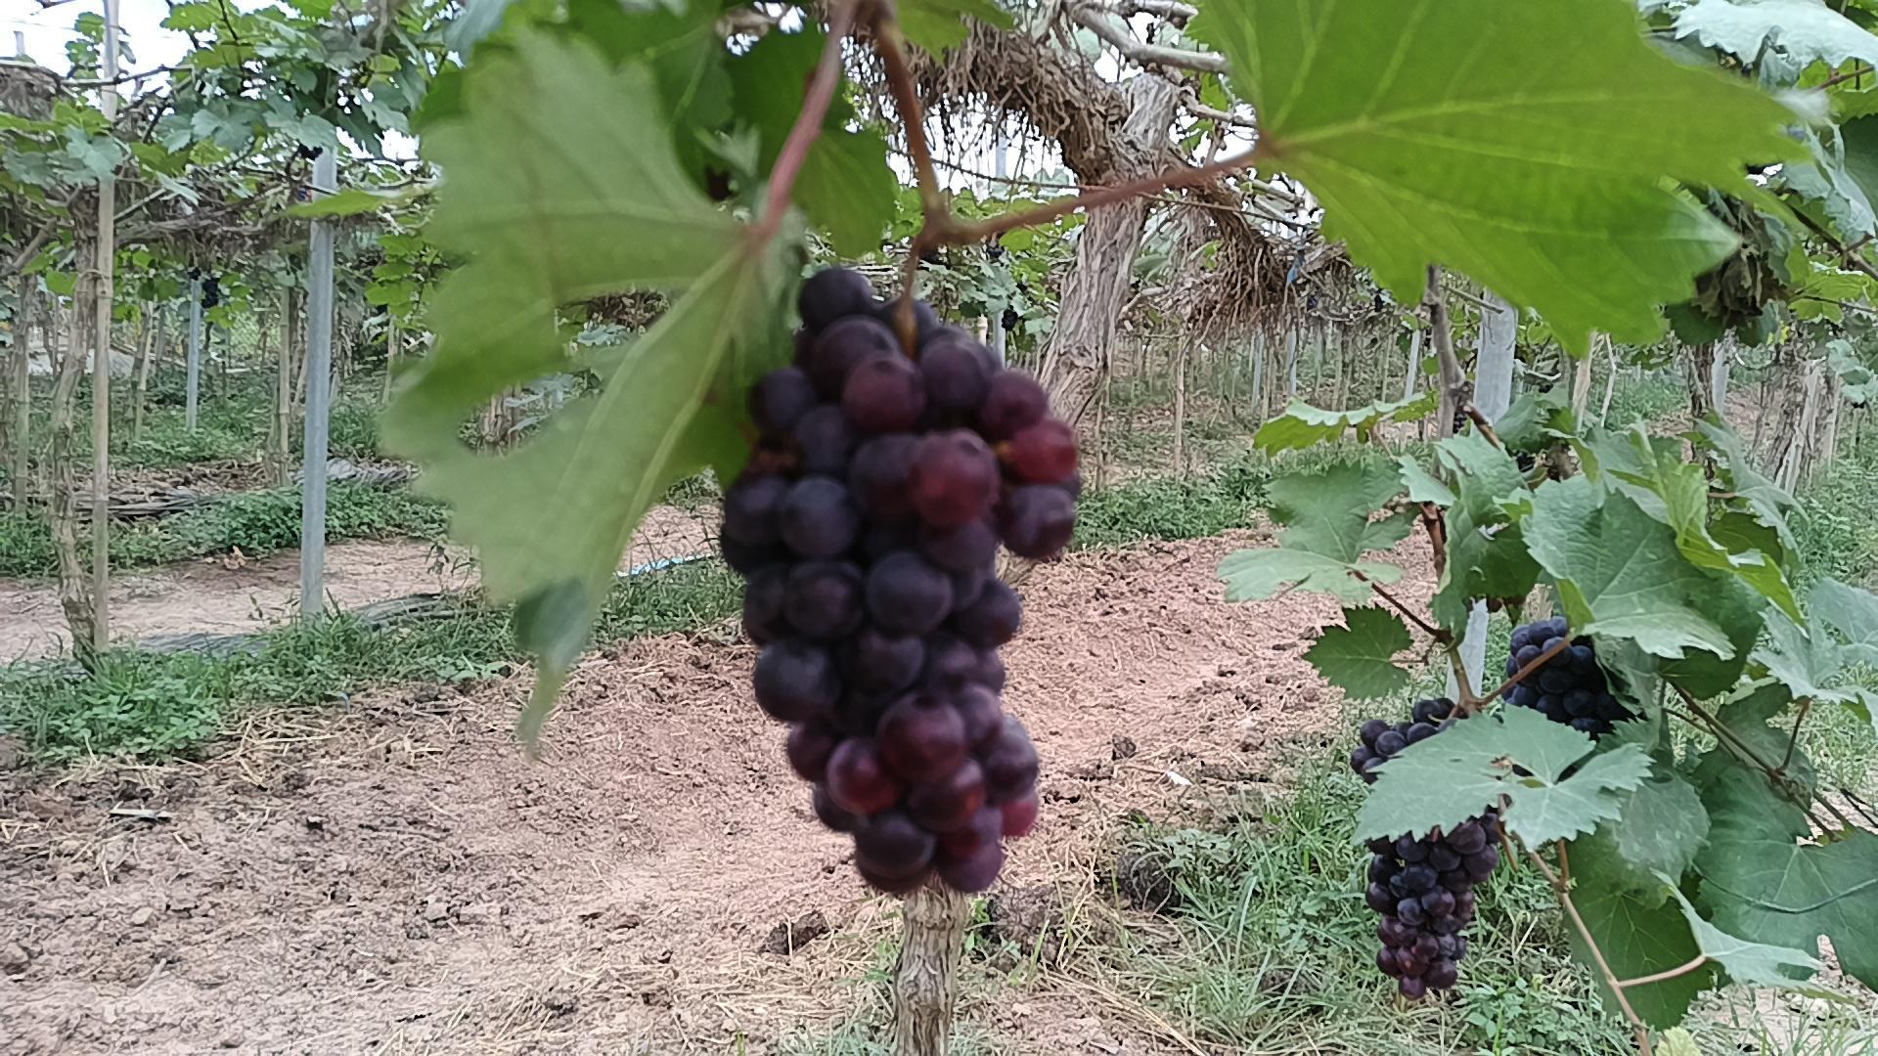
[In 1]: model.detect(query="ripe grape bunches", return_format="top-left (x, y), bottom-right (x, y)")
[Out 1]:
top-left (1350, 699), bottom-right (1501, 998)
top-left (1500, 617), bottom-right (1636, 742)
top-left (722, 268), bottom-right (1079, 893)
